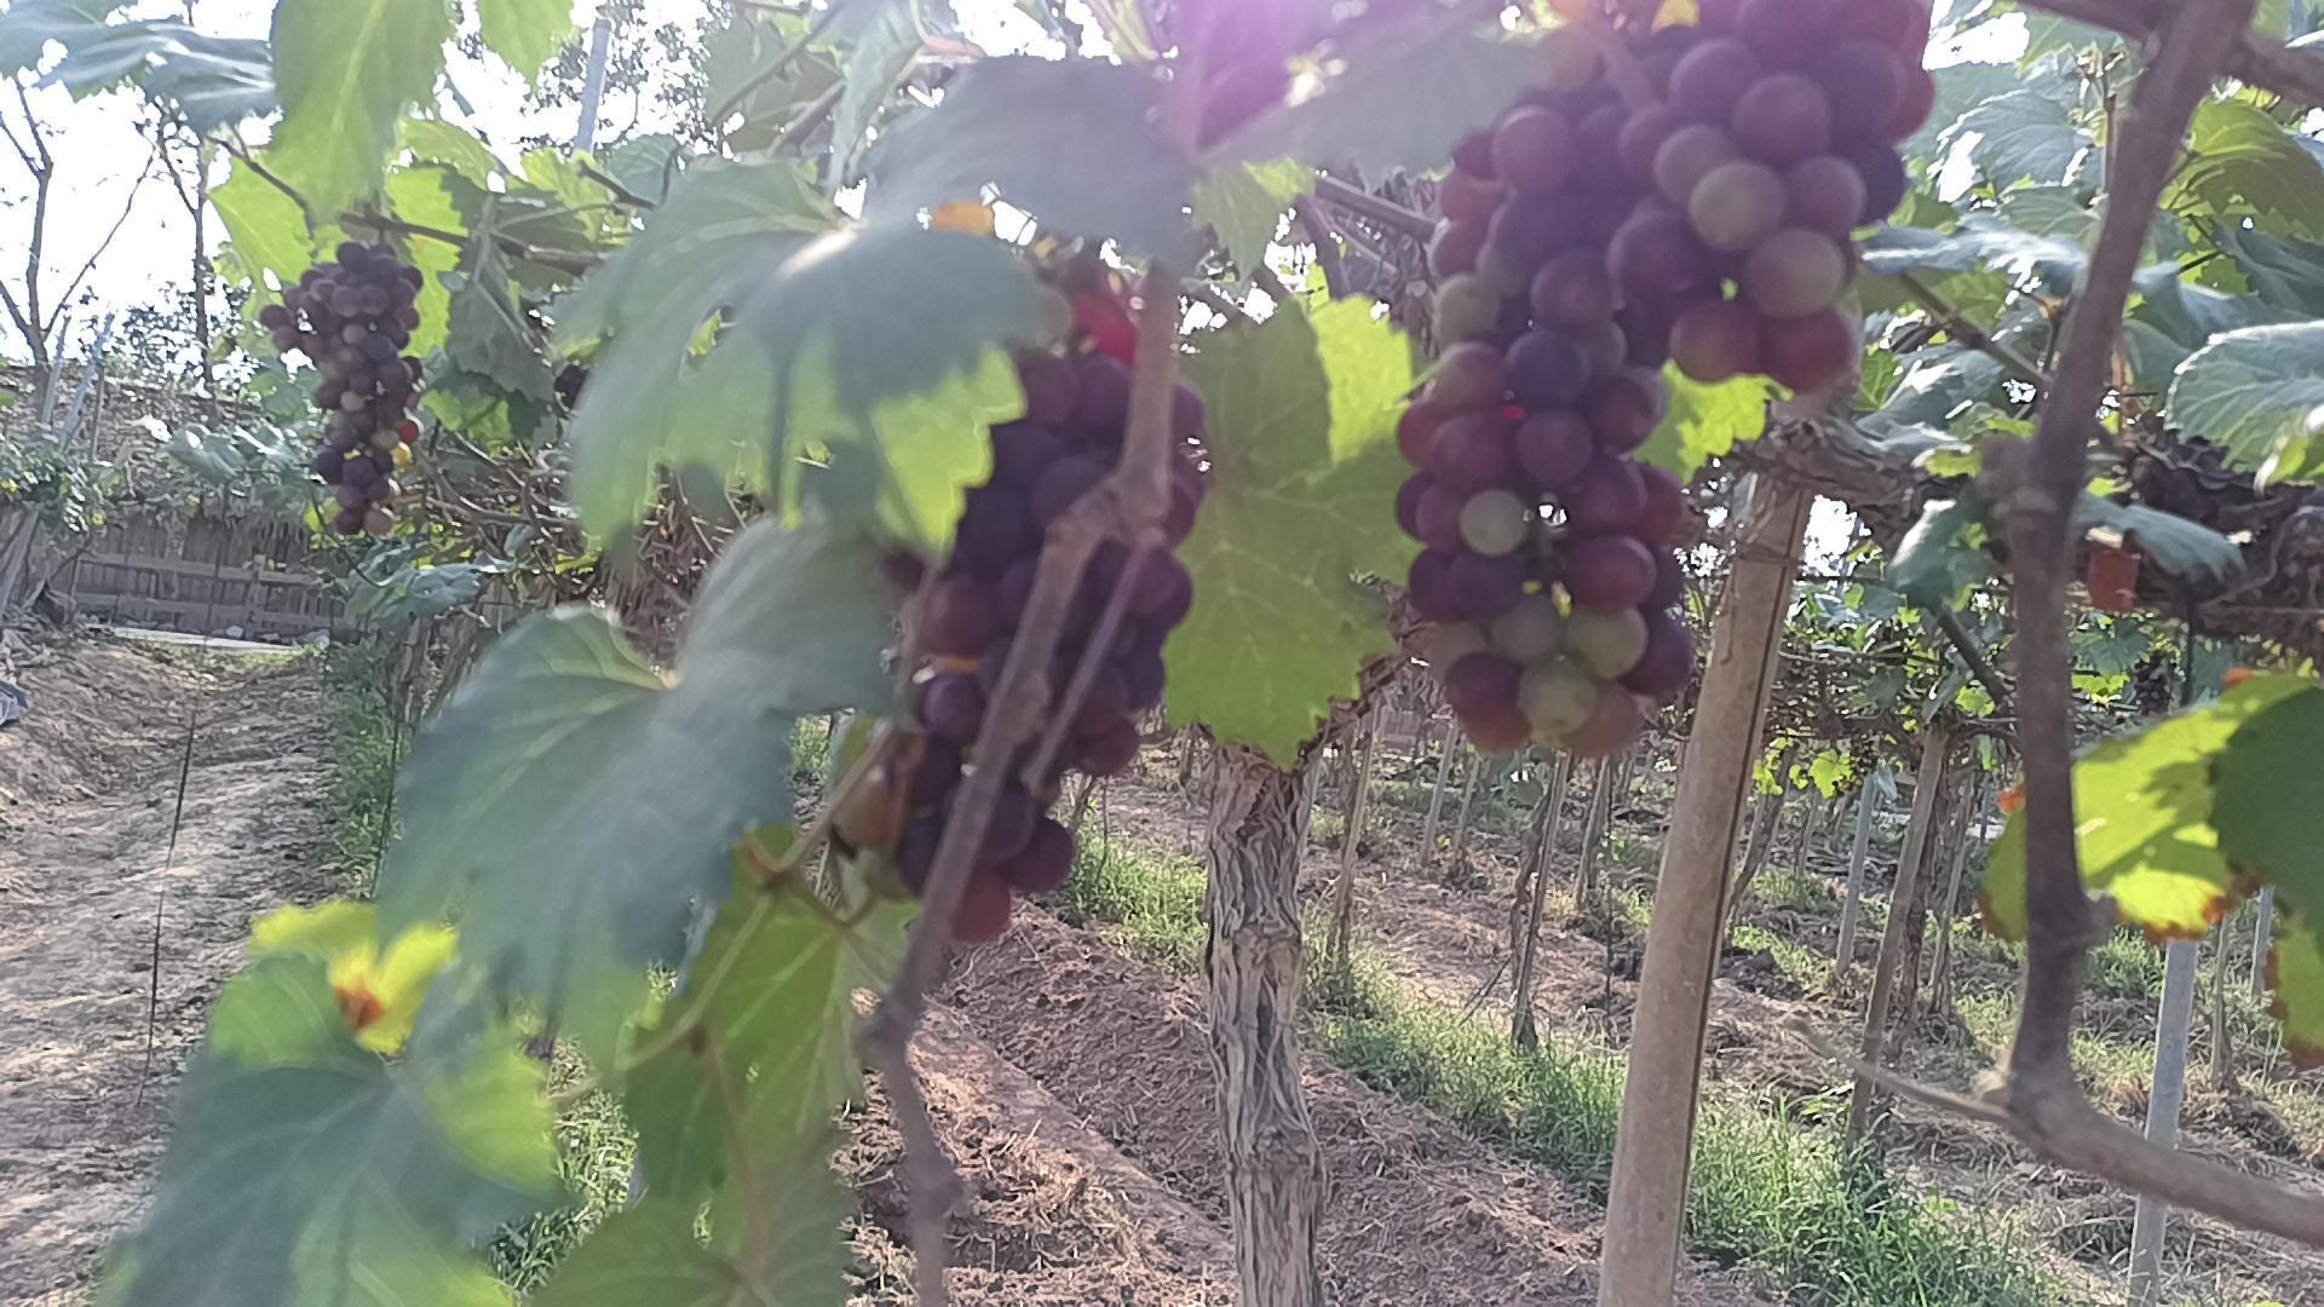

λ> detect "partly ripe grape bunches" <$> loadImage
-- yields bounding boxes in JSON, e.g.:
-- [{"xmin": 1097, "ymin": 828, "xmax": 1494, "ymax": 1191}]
[
  {"xmin": 259, "ymin": 242, "xmax": 424, "ymax": 536},
  {"xmin": 1396, "ymin": 0, "xmax": 1701, "ymax": 758},
  {"xmin": 819, "ymin": 353, "xmax": 1203, "ymax": 943},
  {"xmin": 1605, "ymin": 0, "xmax": 1935, "ymax": 391}
]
